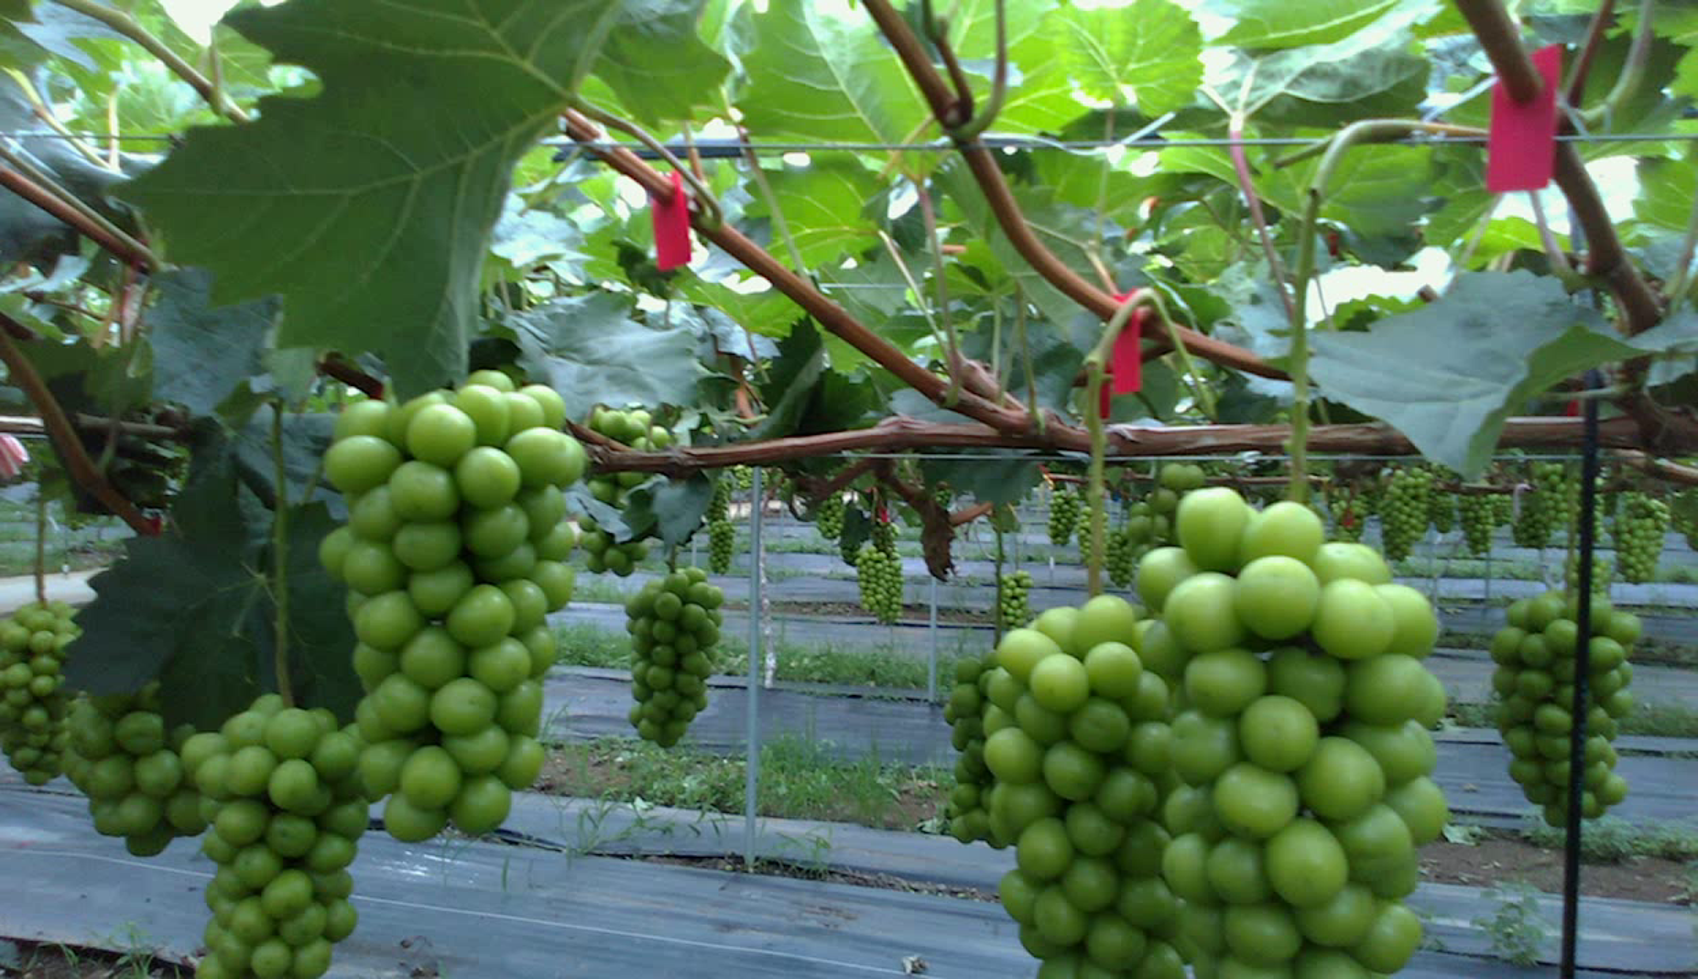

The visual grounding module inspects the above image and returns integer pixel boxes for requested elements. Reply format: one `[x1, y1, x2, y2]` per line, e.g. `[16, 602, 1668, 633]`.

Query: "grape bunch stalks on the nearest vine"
[271, 404, 293, 710]
[1287, 120, 1486, 503]
[1084, 284, 1218, 601]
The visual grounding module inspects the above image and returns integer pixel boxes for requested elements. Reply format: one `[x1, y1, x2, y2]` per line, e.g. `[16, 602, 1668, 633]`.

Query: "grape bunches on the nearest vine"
[982, 593, 1200, 978]
[1135, 488, 1449, 978]
[59, 680, 211, 857]
[181, 693, 370, 978]
[318, 368, 586, 843]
